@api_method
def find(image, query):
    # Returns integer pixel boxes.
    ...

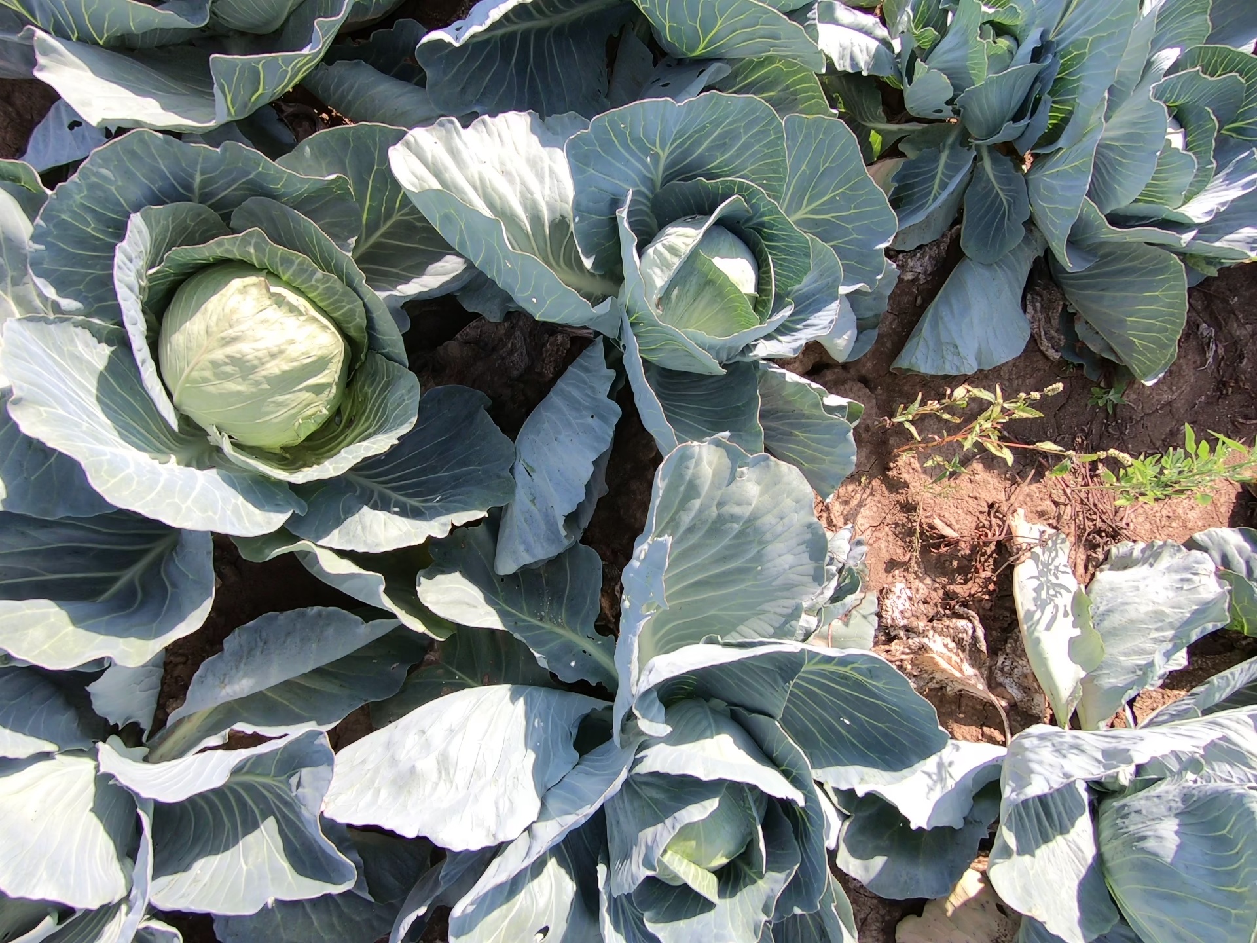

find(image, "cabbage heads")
[4,762,117,936]
[1113,115,1187,189]
[646,221,764,348]
[625,708,765,878]
[158,263,352,448]
[958,33,1020,91]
